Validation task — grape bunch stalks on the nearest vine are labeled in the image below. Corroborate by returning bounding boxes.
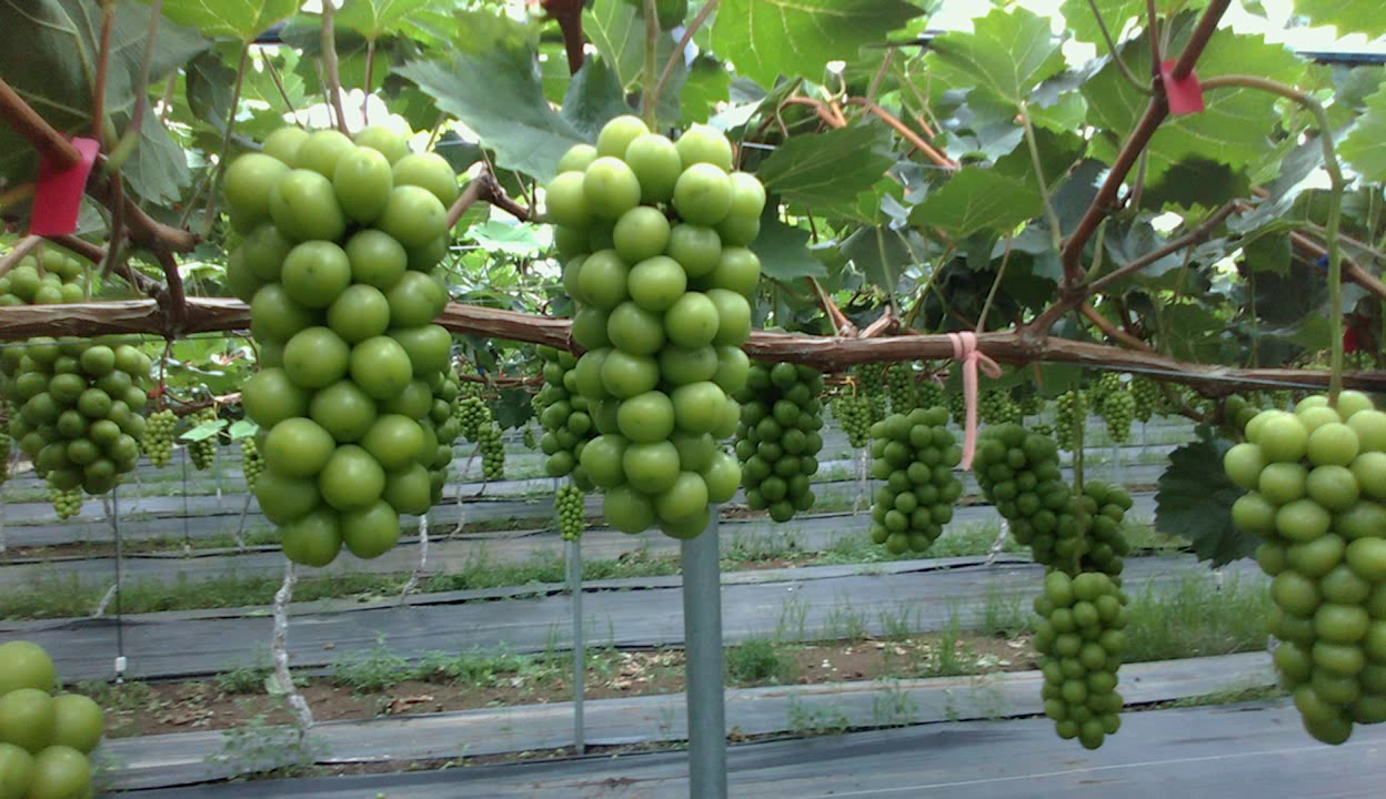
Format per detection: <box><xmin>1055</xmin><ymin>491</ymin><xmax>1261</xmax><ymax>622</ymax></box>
<box><xmin>643</xmin><ymin>1</ymin><xmax>656</xmax><ymax>132</ymax></box>
<box><xmin>1199</xmin><ymin>72</ymin><xmax>1344</xmax><ymax>407</ymax></box>
<box><xmin>322</xmin><ymin>1</ymin><xmax>352</xmax><ymax>140</ymax></box>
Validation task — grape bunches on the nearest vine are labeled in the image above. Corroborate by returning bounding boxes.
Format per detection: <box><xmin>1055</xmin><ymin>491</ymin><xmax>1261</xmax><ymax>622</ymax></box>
<box><xmin>1223</xmin><ymin>391</ymin><xmax>1385</xmax><ymax>744</ymax></box>
<box><xmin>222</xmin><ymin>125</ymin><xmax>459</xmax><ymax>567</ymax></box>
<box><xmin>544</xmin><ymin>114</ymin><xmax>765</xmax><ymax>540</ymax></box>
<box><xmin>0</xmin><ymin>639</ymin><xmax>106</xmax><ymax>798</ymax></box>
